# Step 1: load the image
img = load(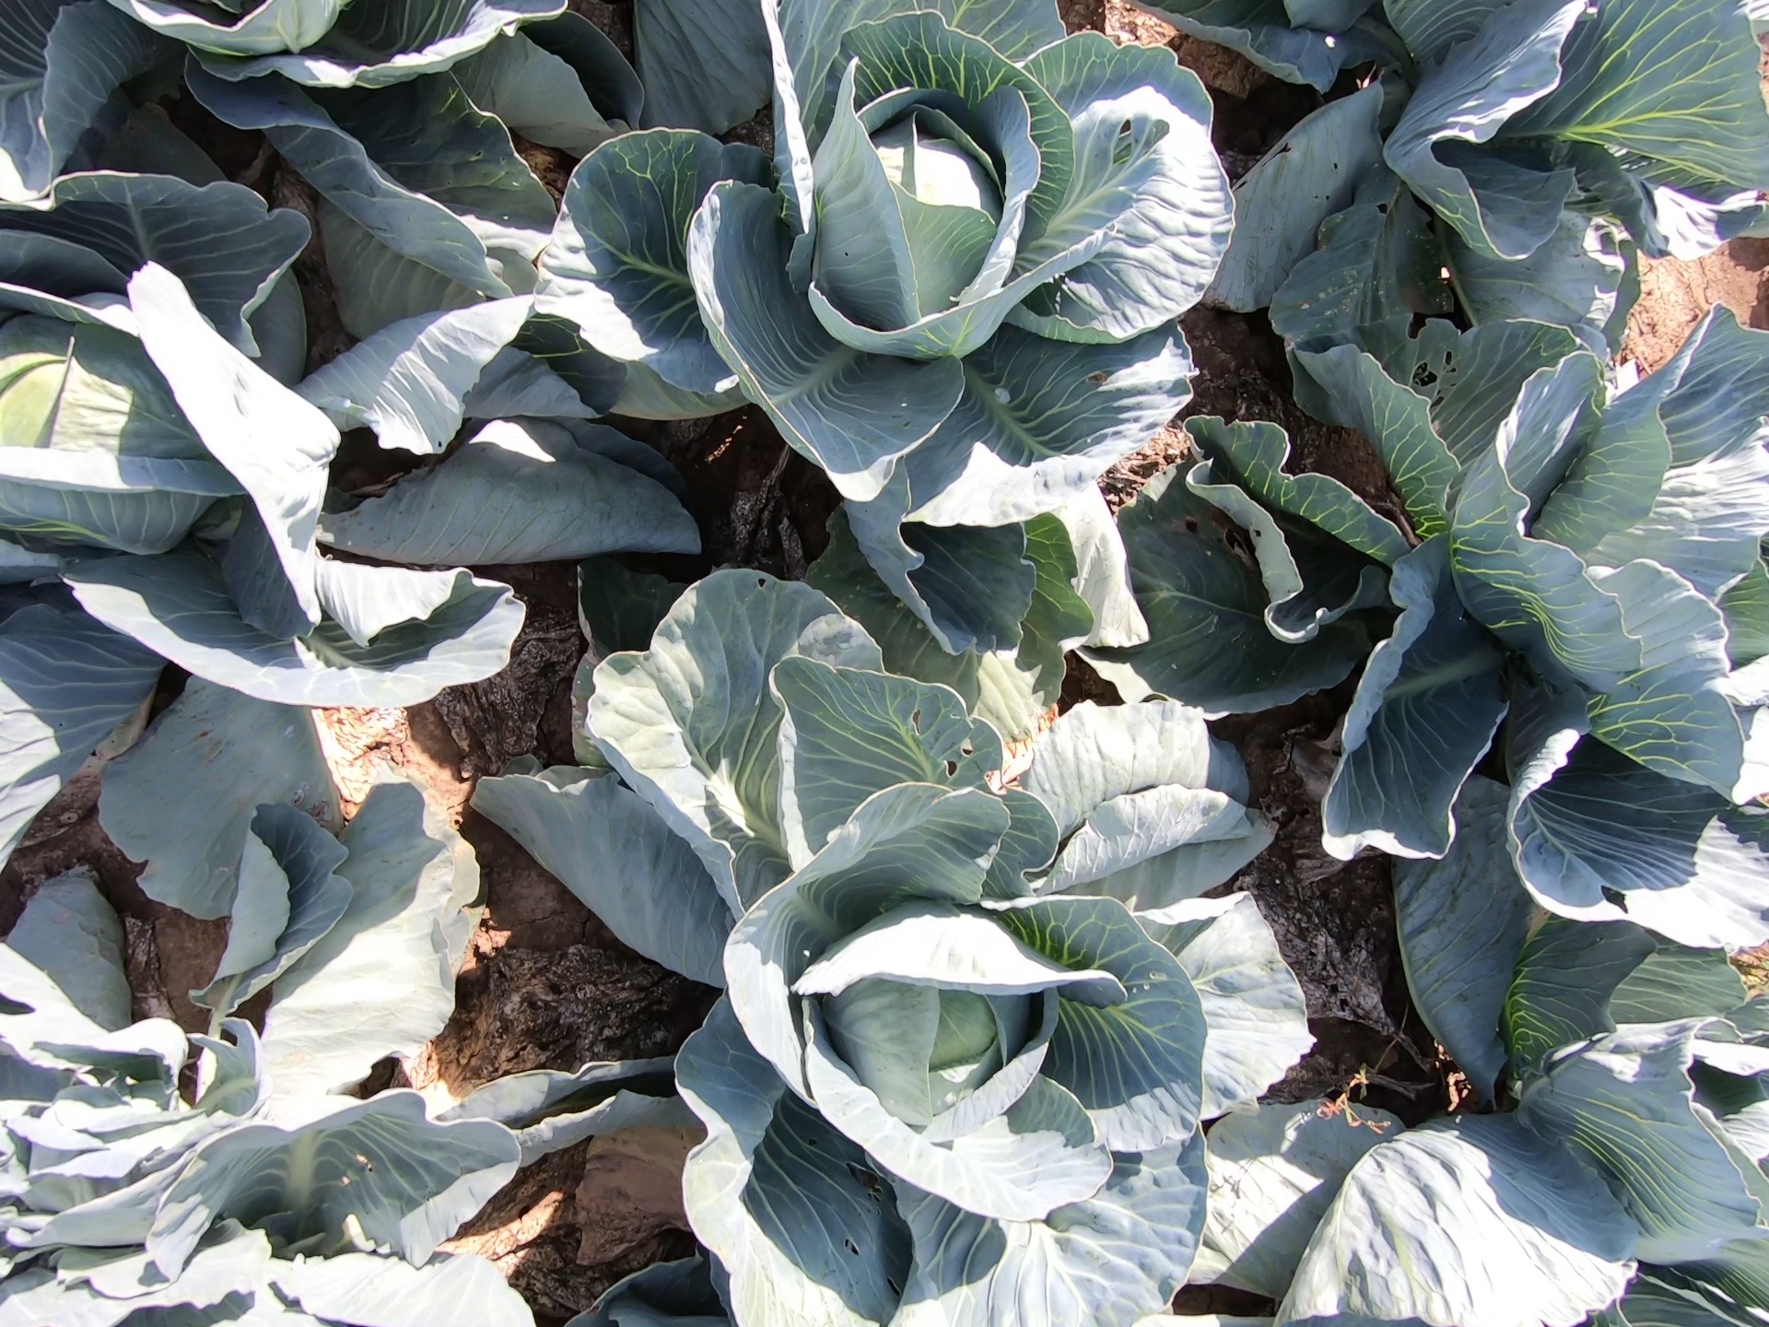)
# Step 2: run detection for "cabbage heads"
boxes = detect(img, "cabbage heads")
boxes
[832,919,1030,1117]
[2,299,228,510]
[25,1093,186,1220]
[834,126,991,311]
